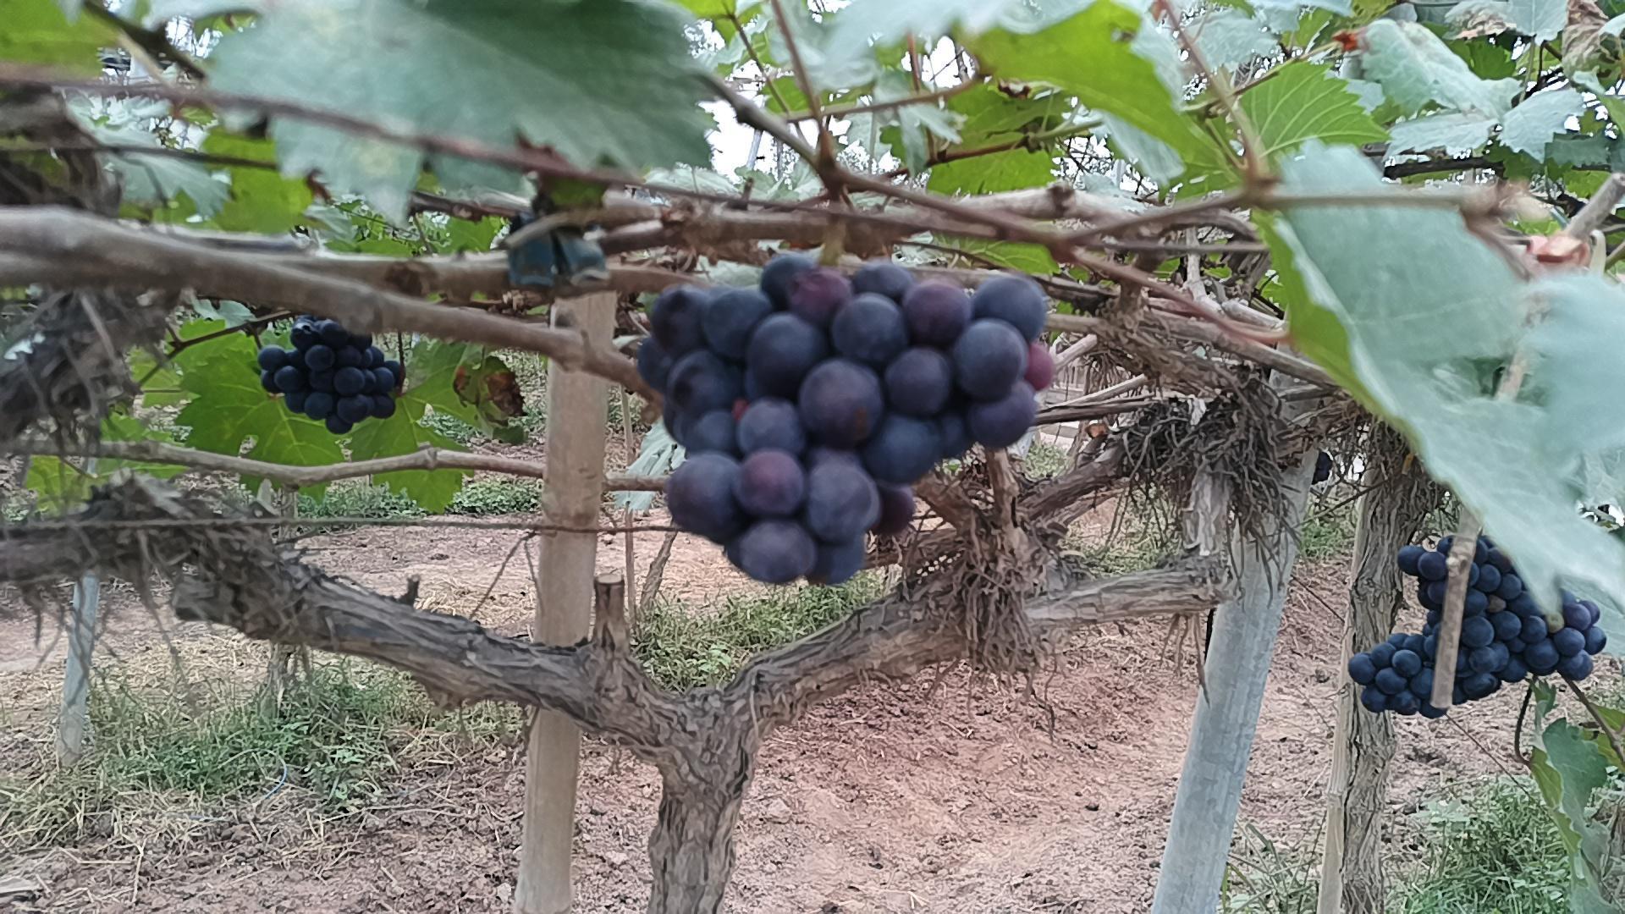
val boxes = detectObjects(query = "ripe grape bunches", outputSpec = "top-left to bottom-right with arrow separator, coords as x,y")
257,318 -> 404,433
636,256 -> 1053,583
1347,535 -> 1606,718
